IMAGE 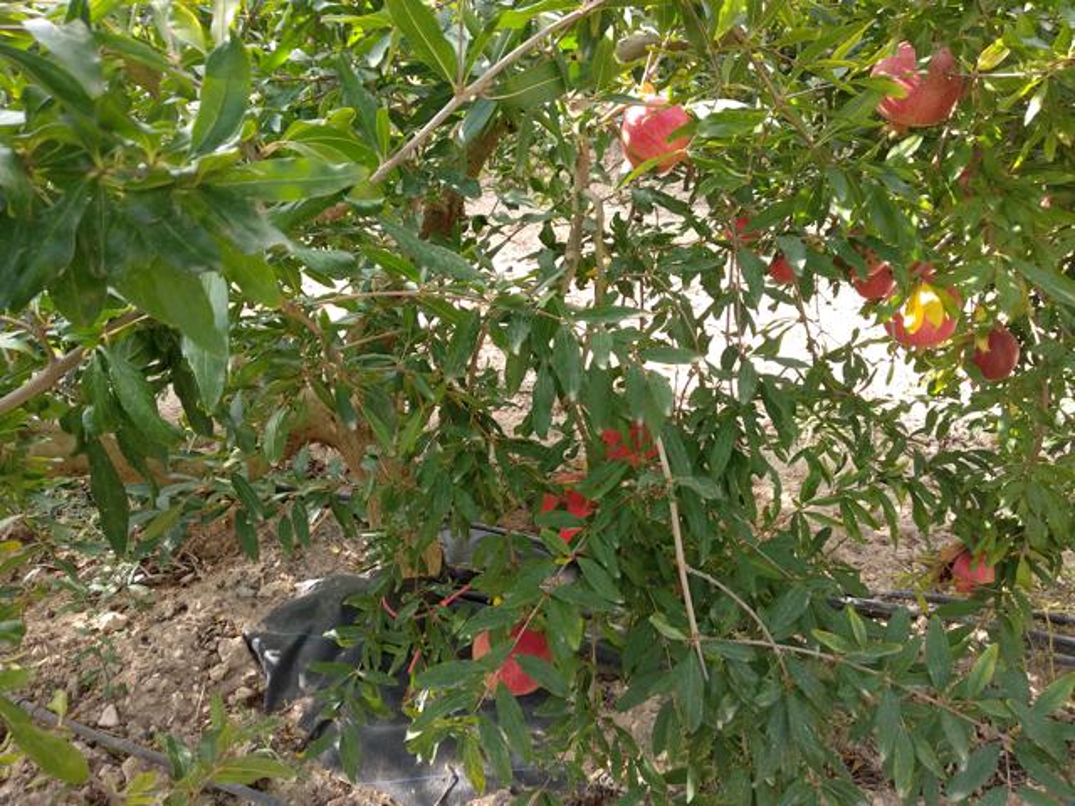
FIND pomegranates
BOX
[870,39,962,128]
[601,427,658,465]
[769,255,794,285]
[726,217,752,242]
[971,329,1020,379]
[620,97,690,173]
[472,621,553,695]
[848,262,895,304]
[952,552,994,593]
[884,264,964,346]
[541,489,591,542]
